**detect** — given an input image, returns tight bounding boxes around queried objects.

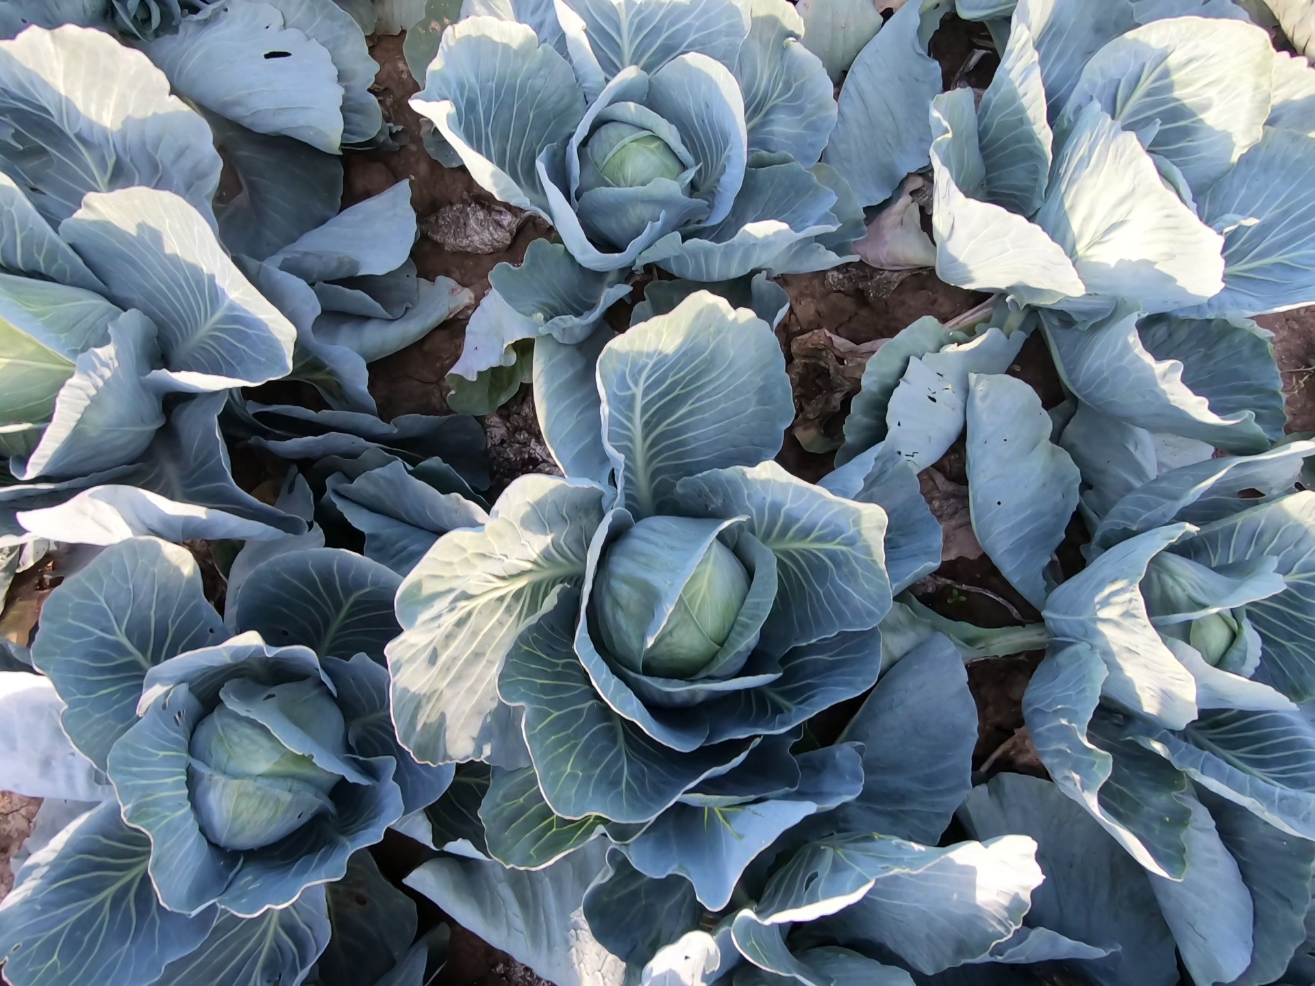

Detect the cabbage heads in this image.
[1108,561,1245,688]
[0,278,122,457]
[1098,154,1198,273]
[613,524,755,676]
[575,112,686,244]
[186,693,342,850]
